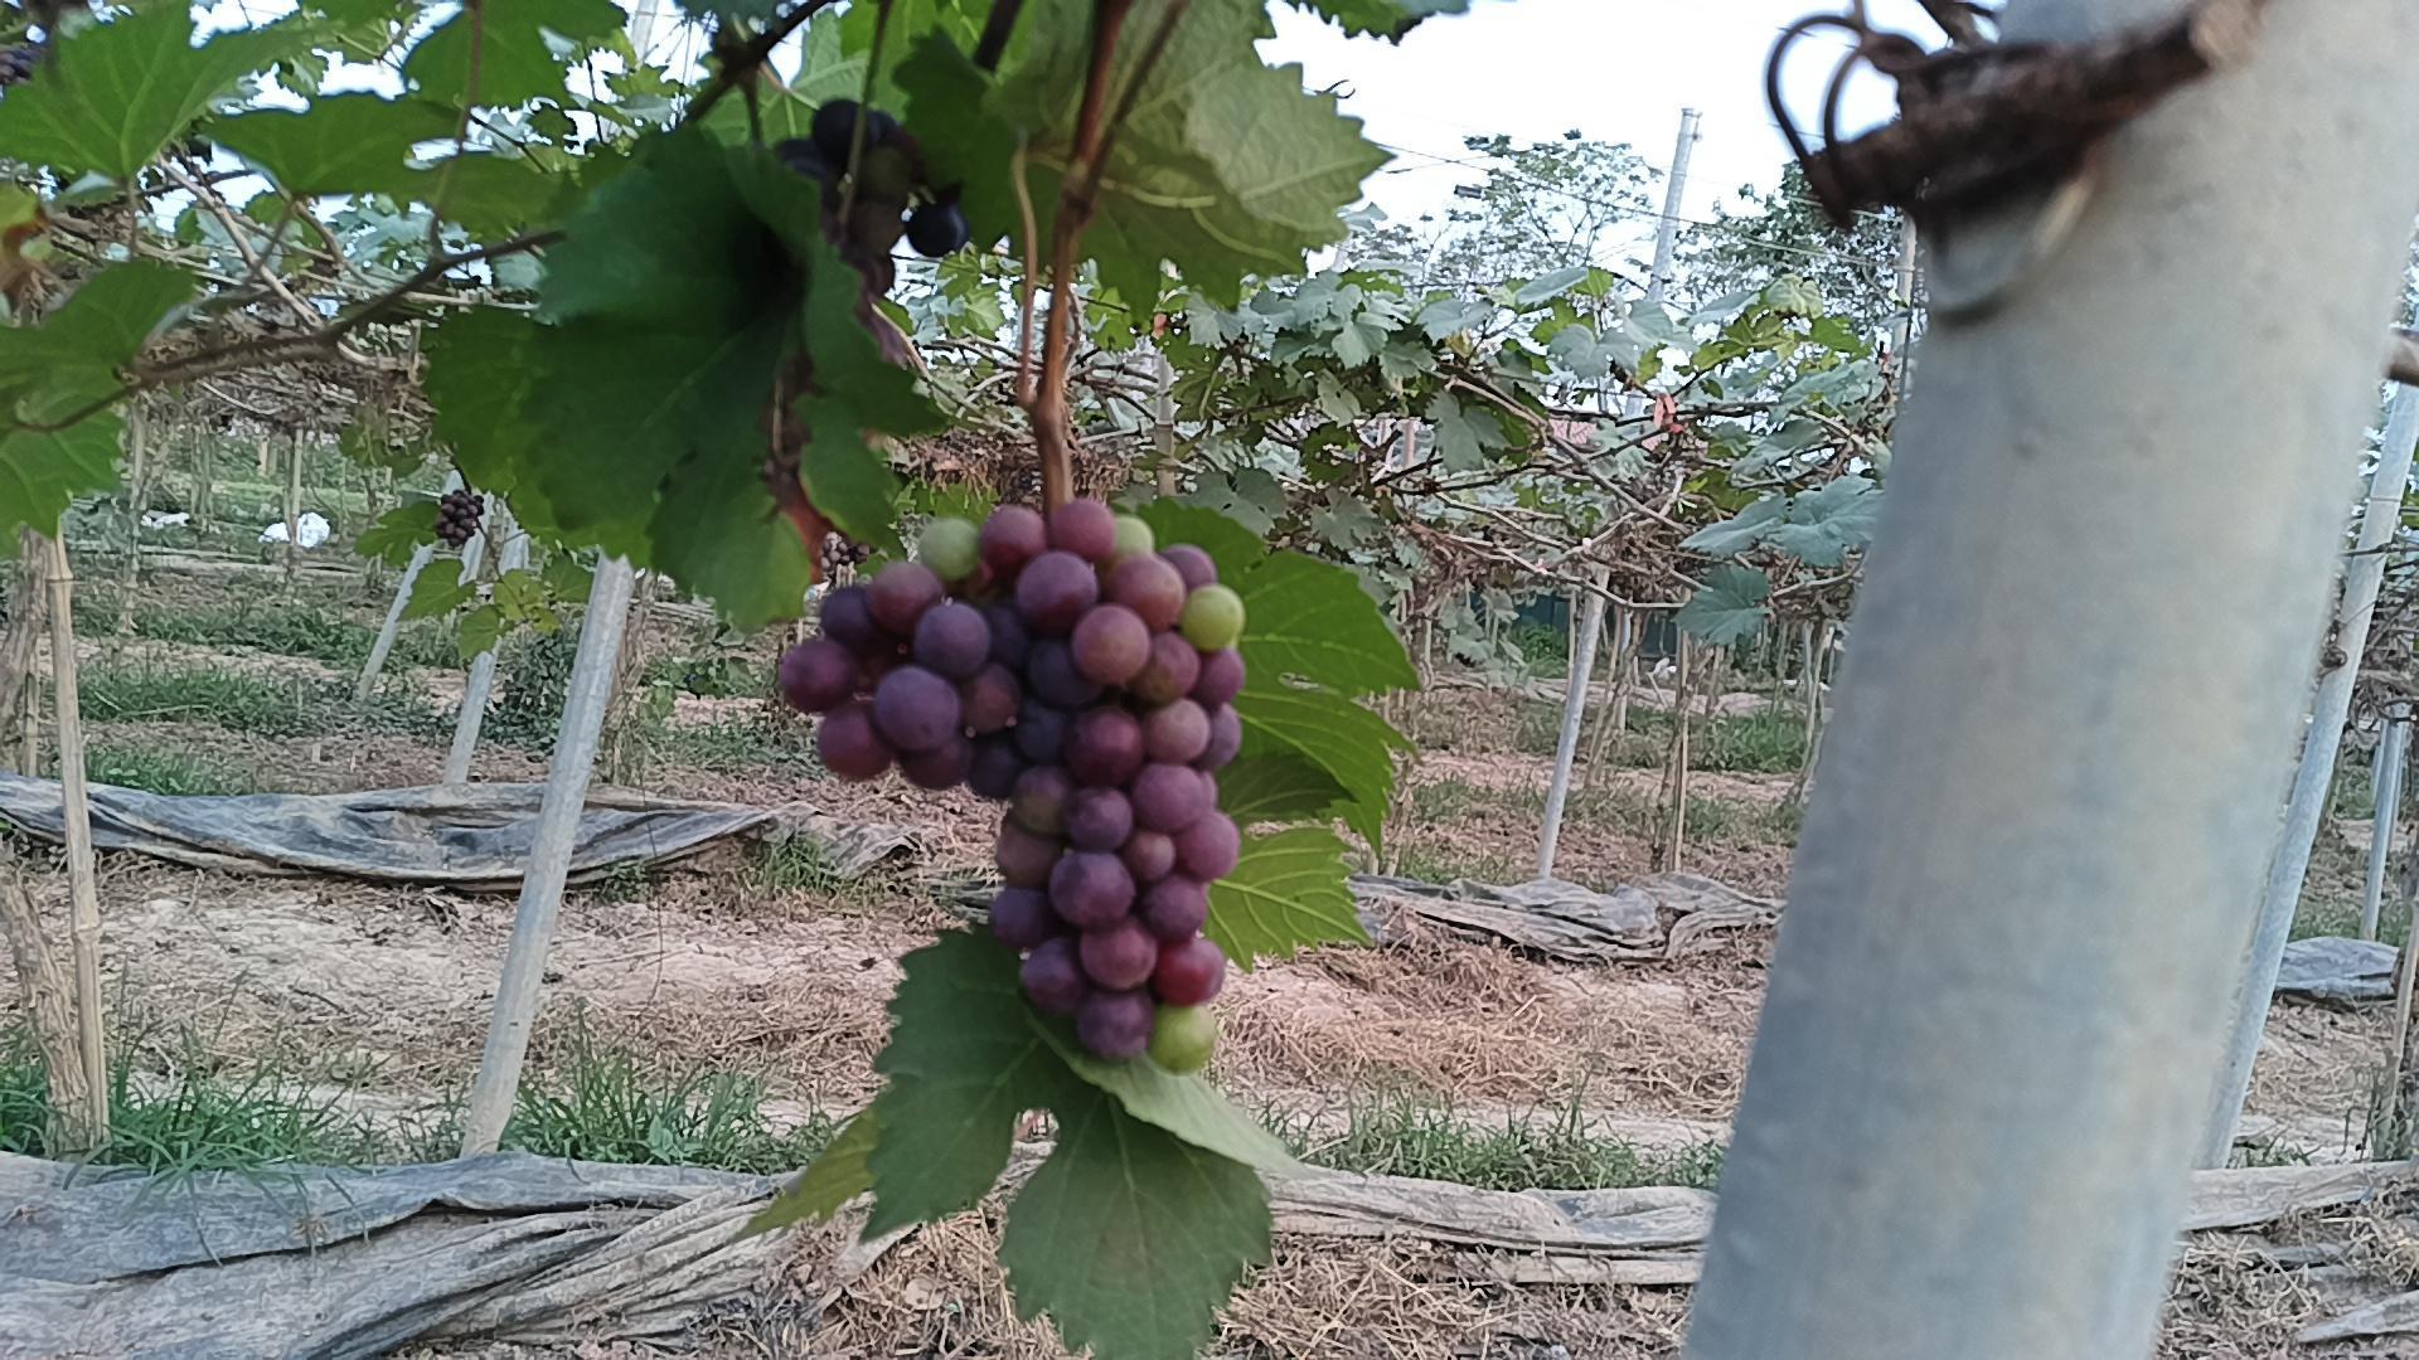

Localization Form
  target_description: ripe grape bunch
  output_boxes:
[432,484,488,553]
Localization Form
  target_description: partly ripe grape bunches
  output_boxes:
[774,98,970,296]
[779,499,1246,1077]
